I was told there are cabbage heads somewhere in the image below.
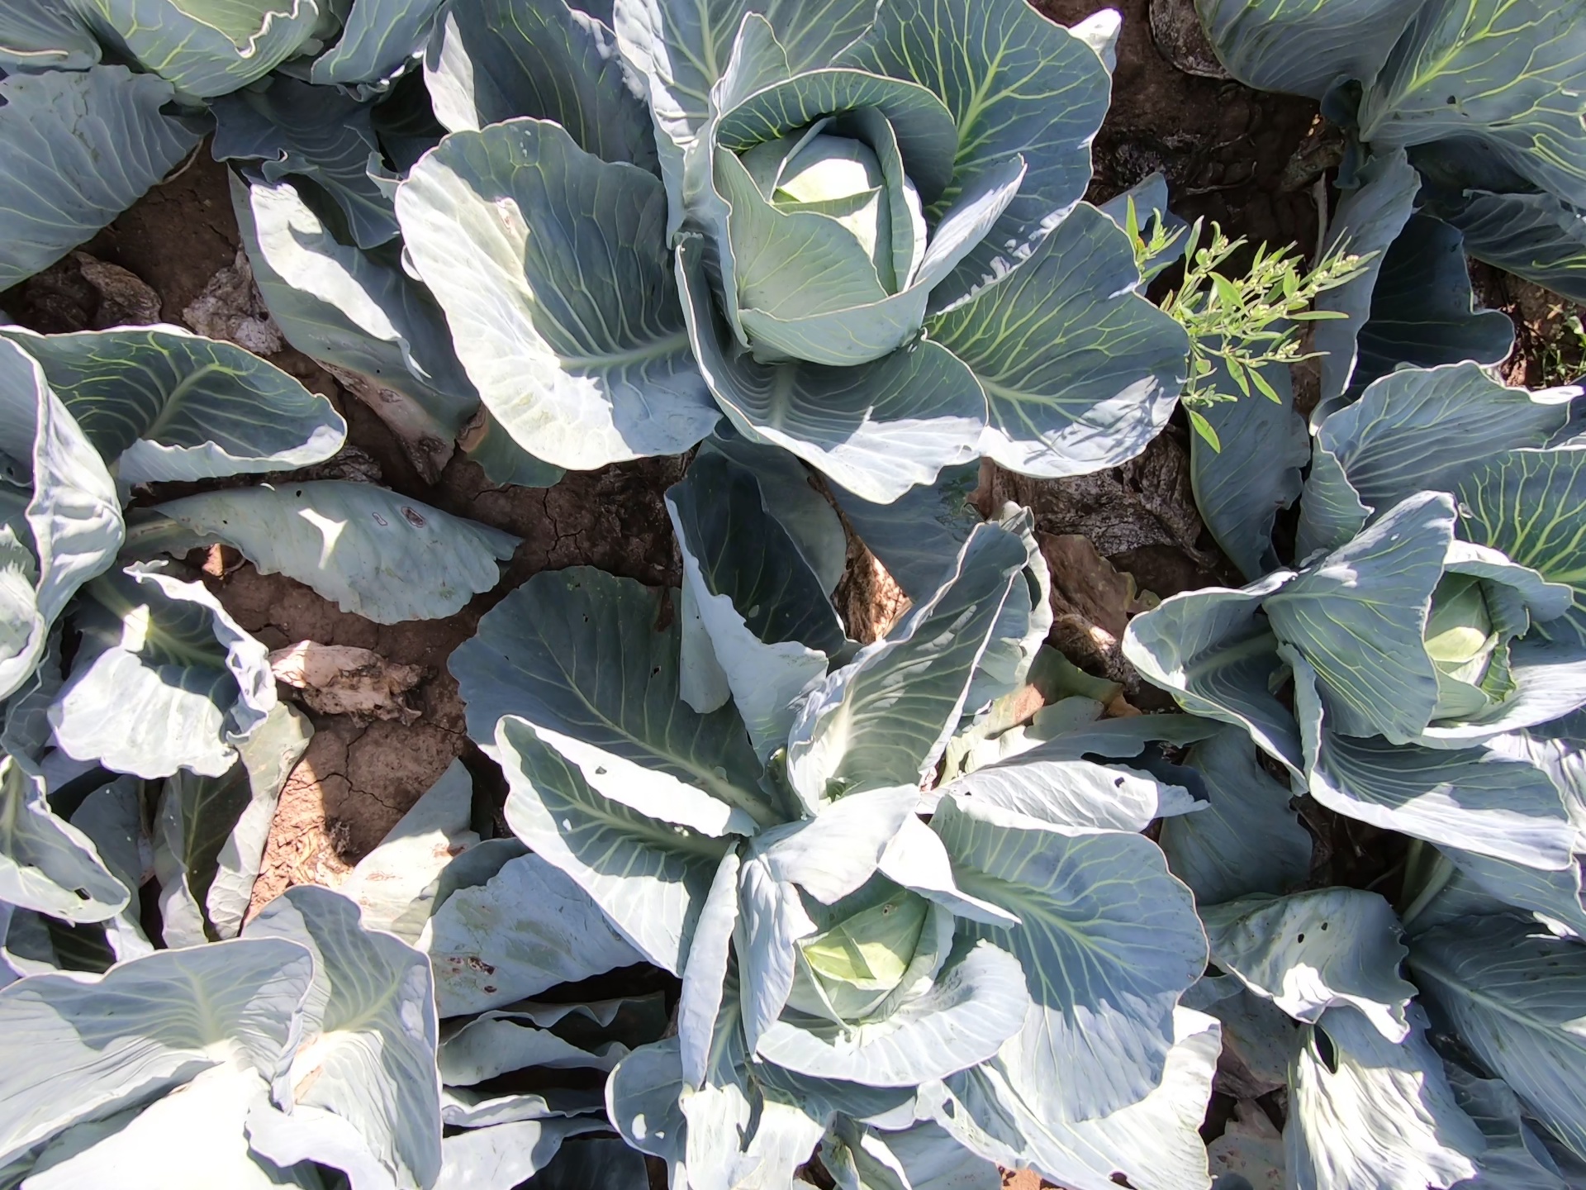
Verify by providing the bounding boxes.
[751,812,948,1022]
[737,136,925,336]
[1339,557,1502,728]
